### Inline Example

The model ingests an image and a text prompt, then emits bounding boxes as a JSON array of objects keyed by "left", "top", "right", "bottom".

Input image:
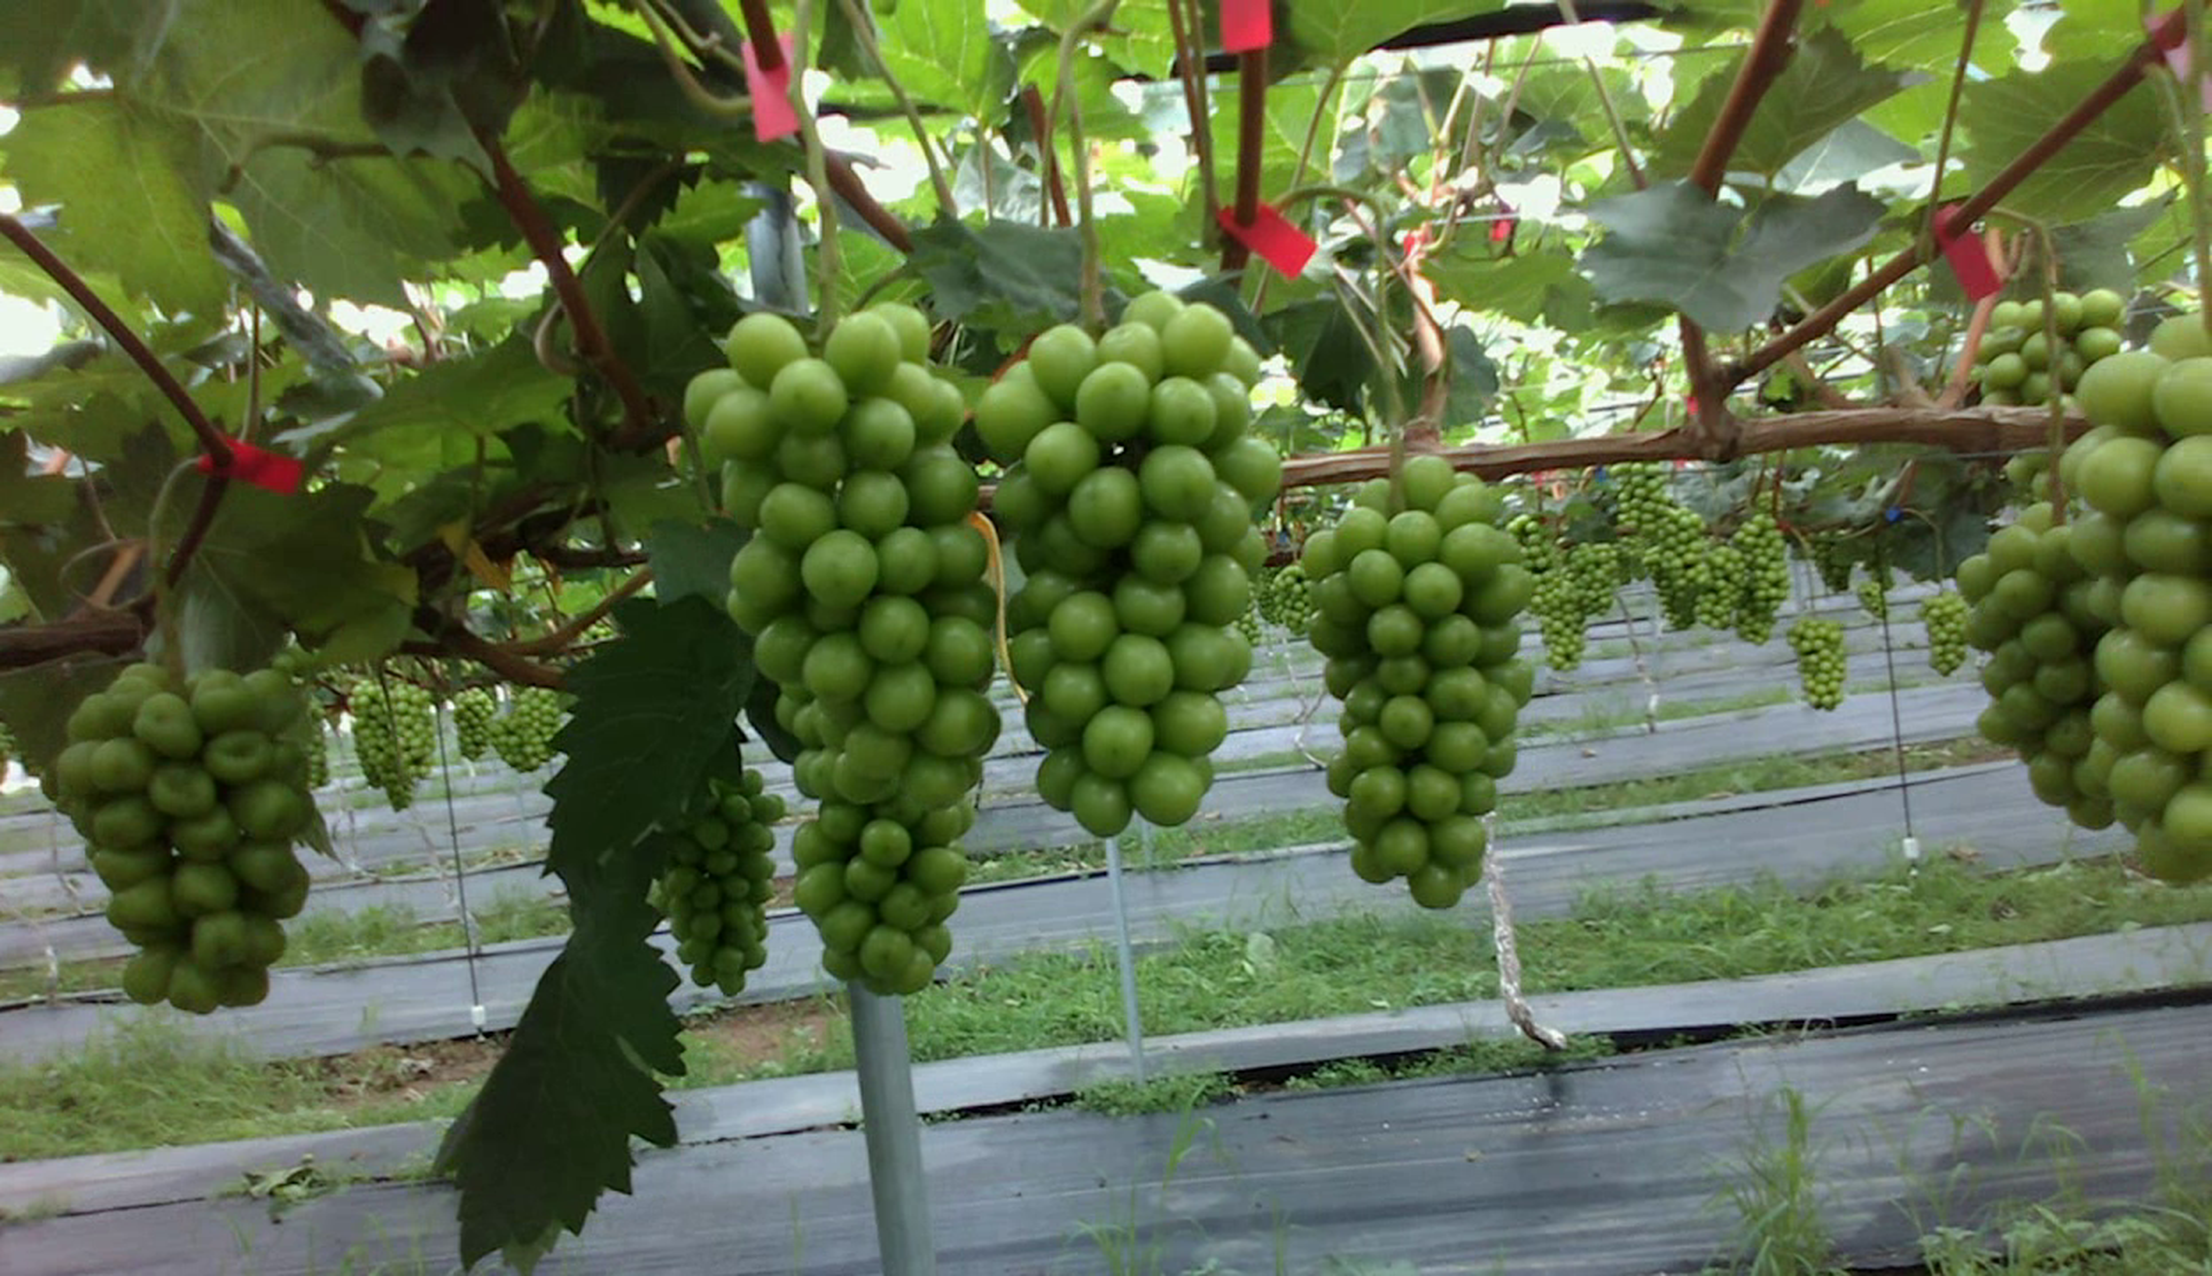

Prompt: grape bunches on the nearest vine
[
  {"left": 791, "top": 797, "right": 973, "bottom": 998},
  {"left": 1305, "top": 459, "right": 1537, "bottom": 909},
  {"left": 1960, "top": 498, "right": 2109, "bottom": 829},
  {"left": 684, "top": 301, "right": 1003, "bottom": 806},
  {"left": 2063, "top": 314, "right": 2210, "bottom": 875},
  {"left": 975, "top": 291, "right": 1285, "bottom": 838},
  {"left": 53, "top": 661, "right": 314, "bottom": 1015}
]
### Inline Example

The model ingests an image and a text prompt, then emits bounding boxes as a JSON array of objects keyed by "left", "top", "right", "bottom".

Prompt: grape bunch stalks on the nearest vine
[
  {"left": 1056, "top": 0, "right": 1120, "bottom": 331},
  {"left": 151, "top": 455, "right": 200, "bottom": 689},
  {"left": 1983, "top": 206, "right": 2063, "bottom": 525},
  {"left": 787, "top": 0, "right": 840, "bottom": 340},
  {"left": 1267, "top": 181, "right": 1406, "bottom": 514}
]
